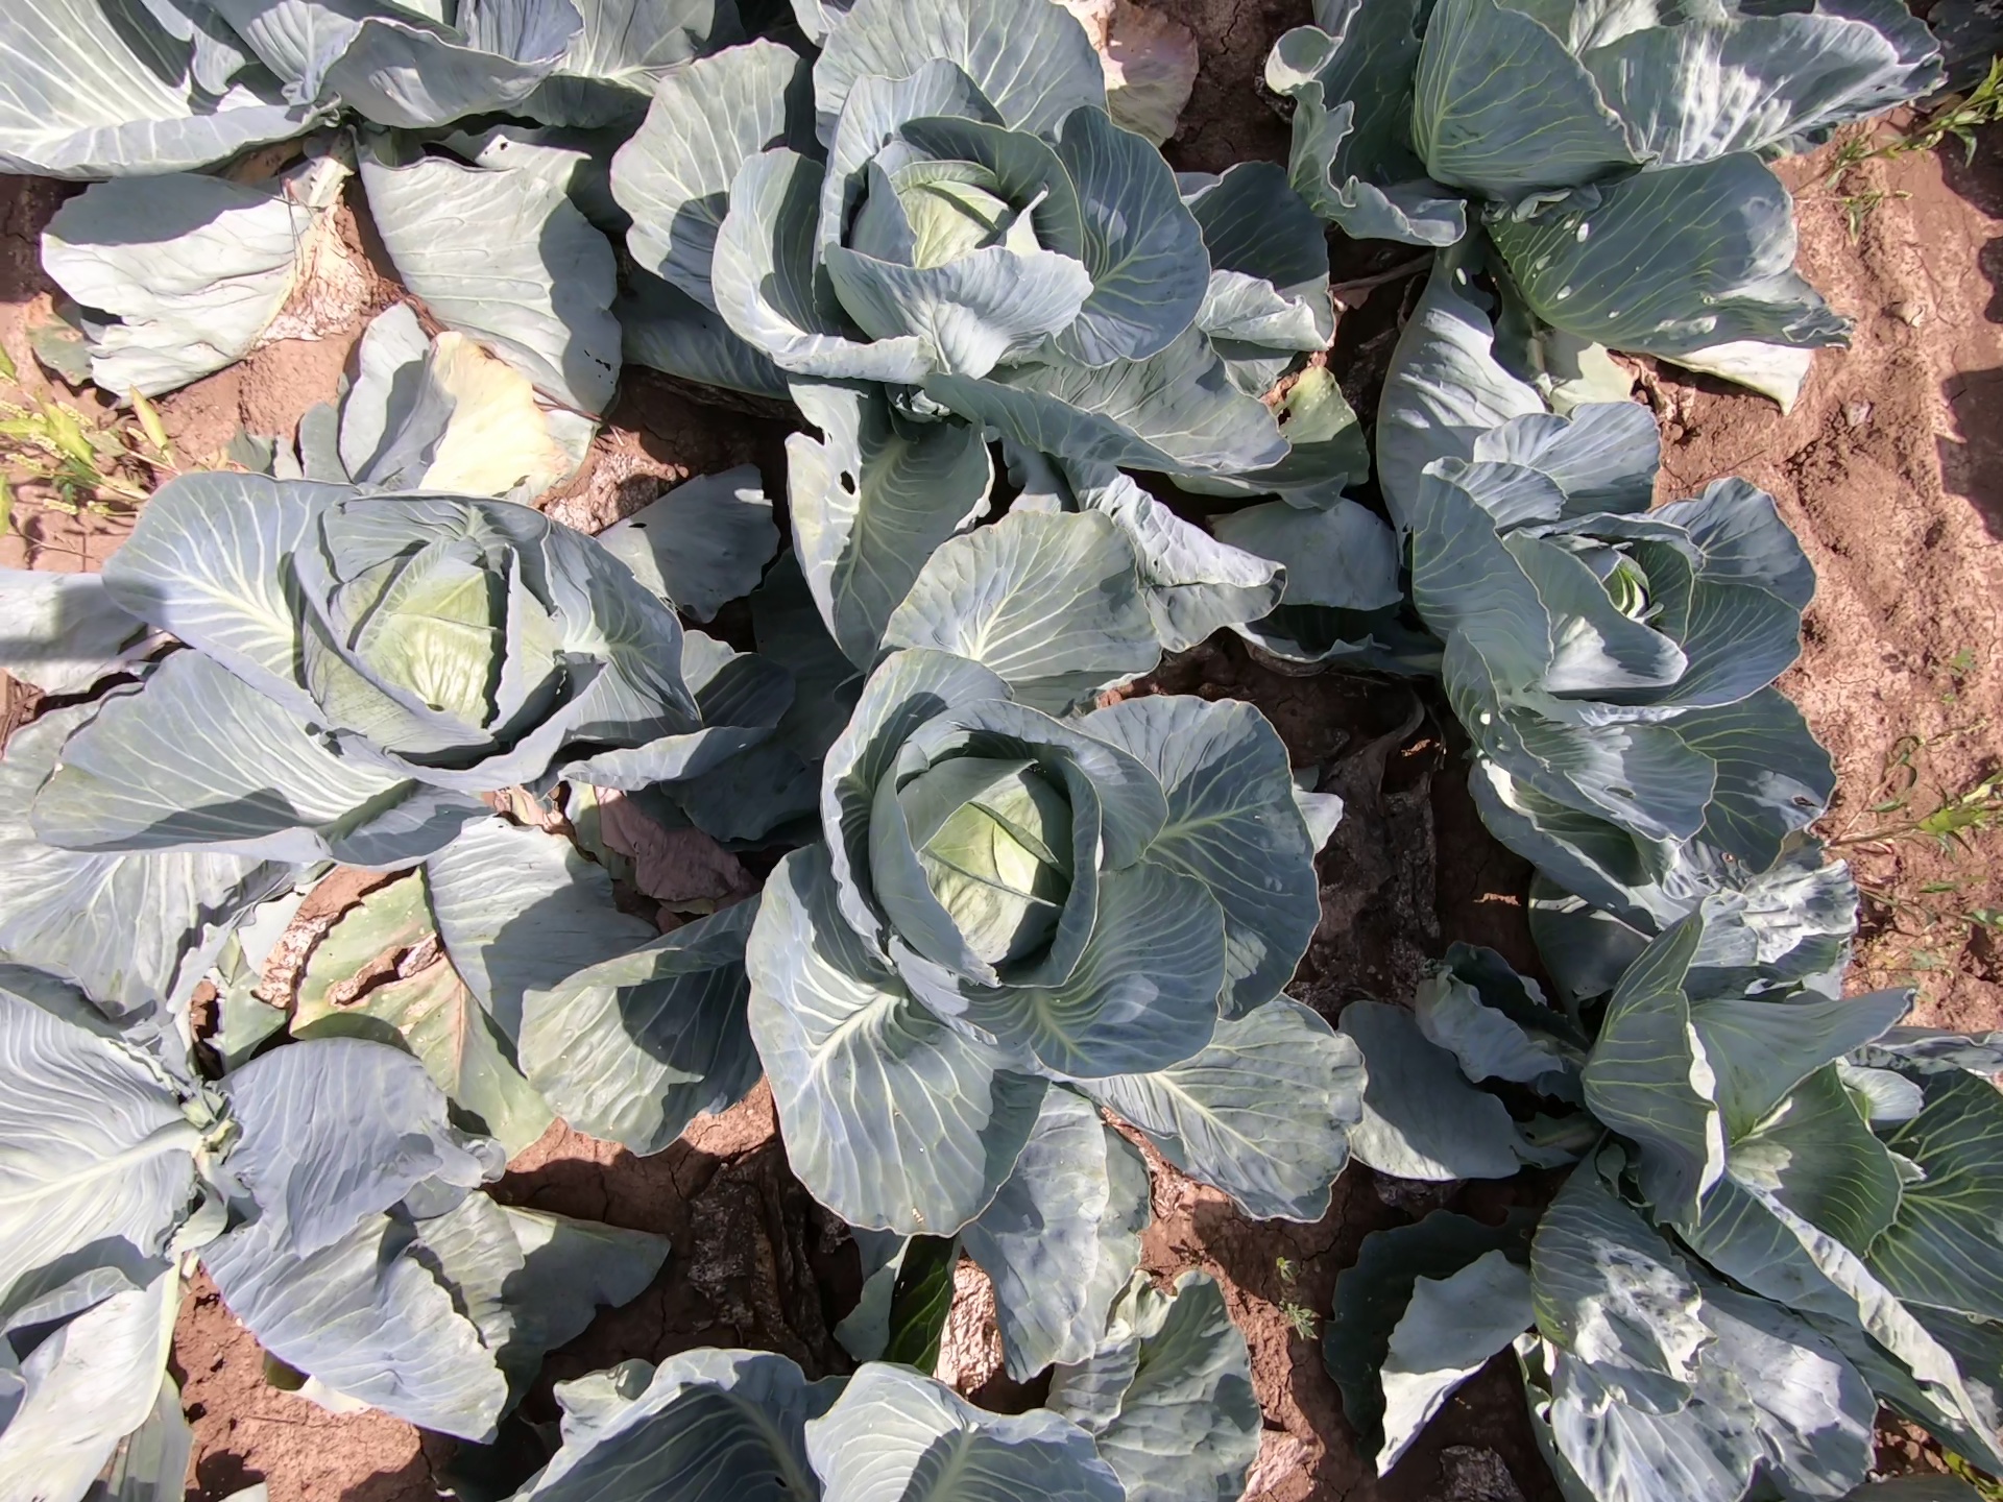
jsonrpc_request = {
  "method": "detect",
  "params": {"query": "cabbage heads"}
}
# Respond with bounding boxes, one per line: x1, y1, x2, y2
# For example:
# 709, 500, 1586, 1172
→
227, 1, 457, 90
1518, 535, 1652, 658
306, 552, 550, 758
1647, 1011, 1876, 1241
871, 757, 1084, 964
846, 169, 1044, 347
